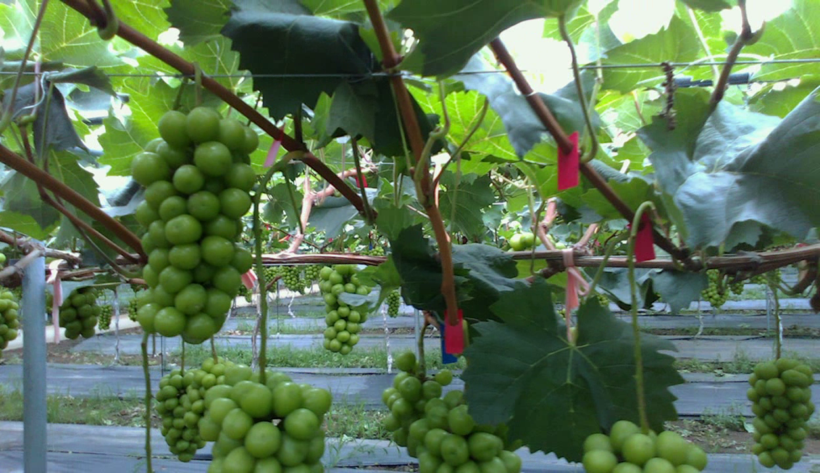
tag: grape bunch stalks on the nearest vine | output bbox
[417,319,429,380]
[627,200,659,435]
[252,150,302,385]
[171,62,202,110]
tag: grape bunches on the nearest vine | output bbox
[131,106,260,345]
[382,351,454,447]
[199,364,331,472]
[405,389,523,472]
[582,420,708,472]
